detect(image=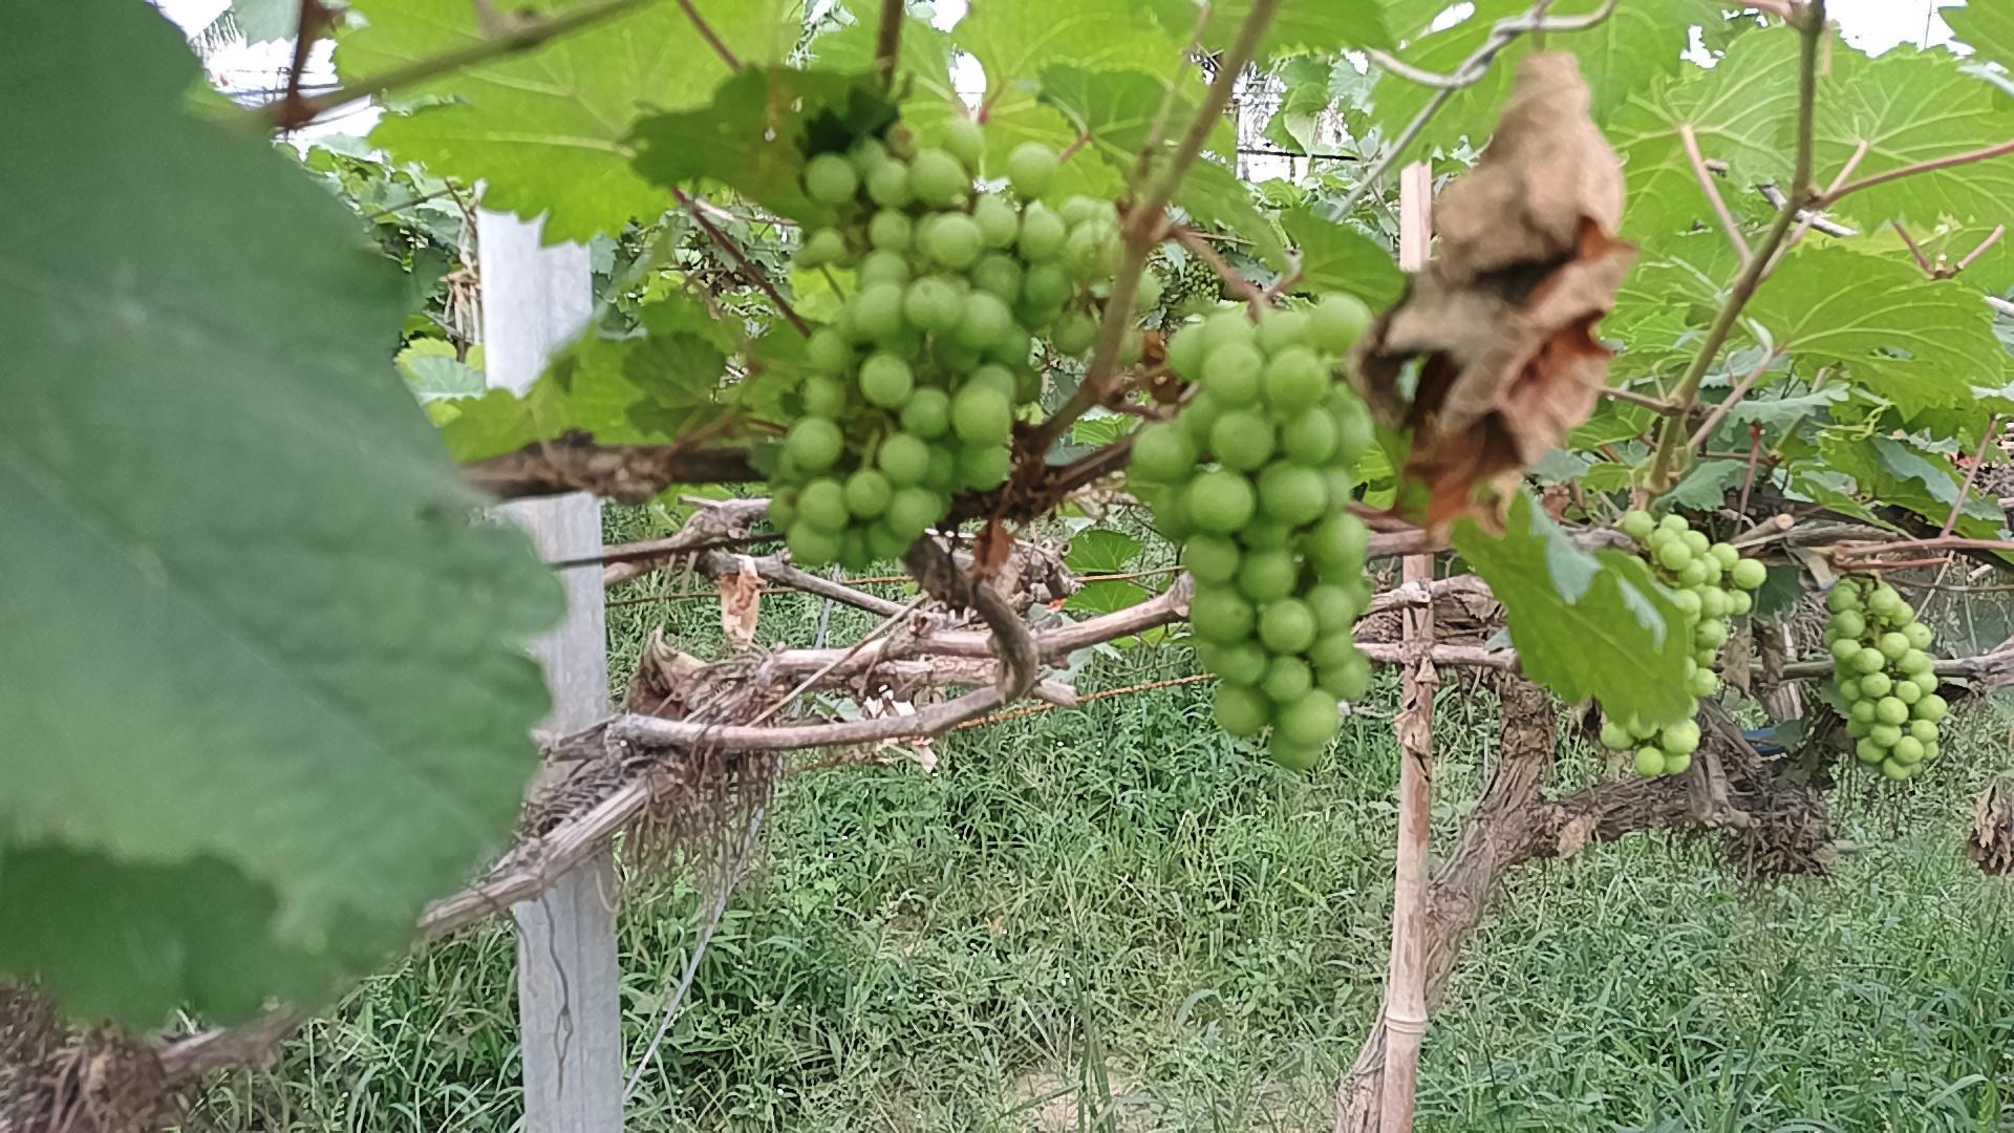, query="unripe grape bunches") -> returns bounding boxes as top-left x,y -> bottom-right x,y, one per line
1824,577 -> 1948,778
769,120 -> 1121,565
1129,294 -> 1371,768
1602,510 -> 1765,775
